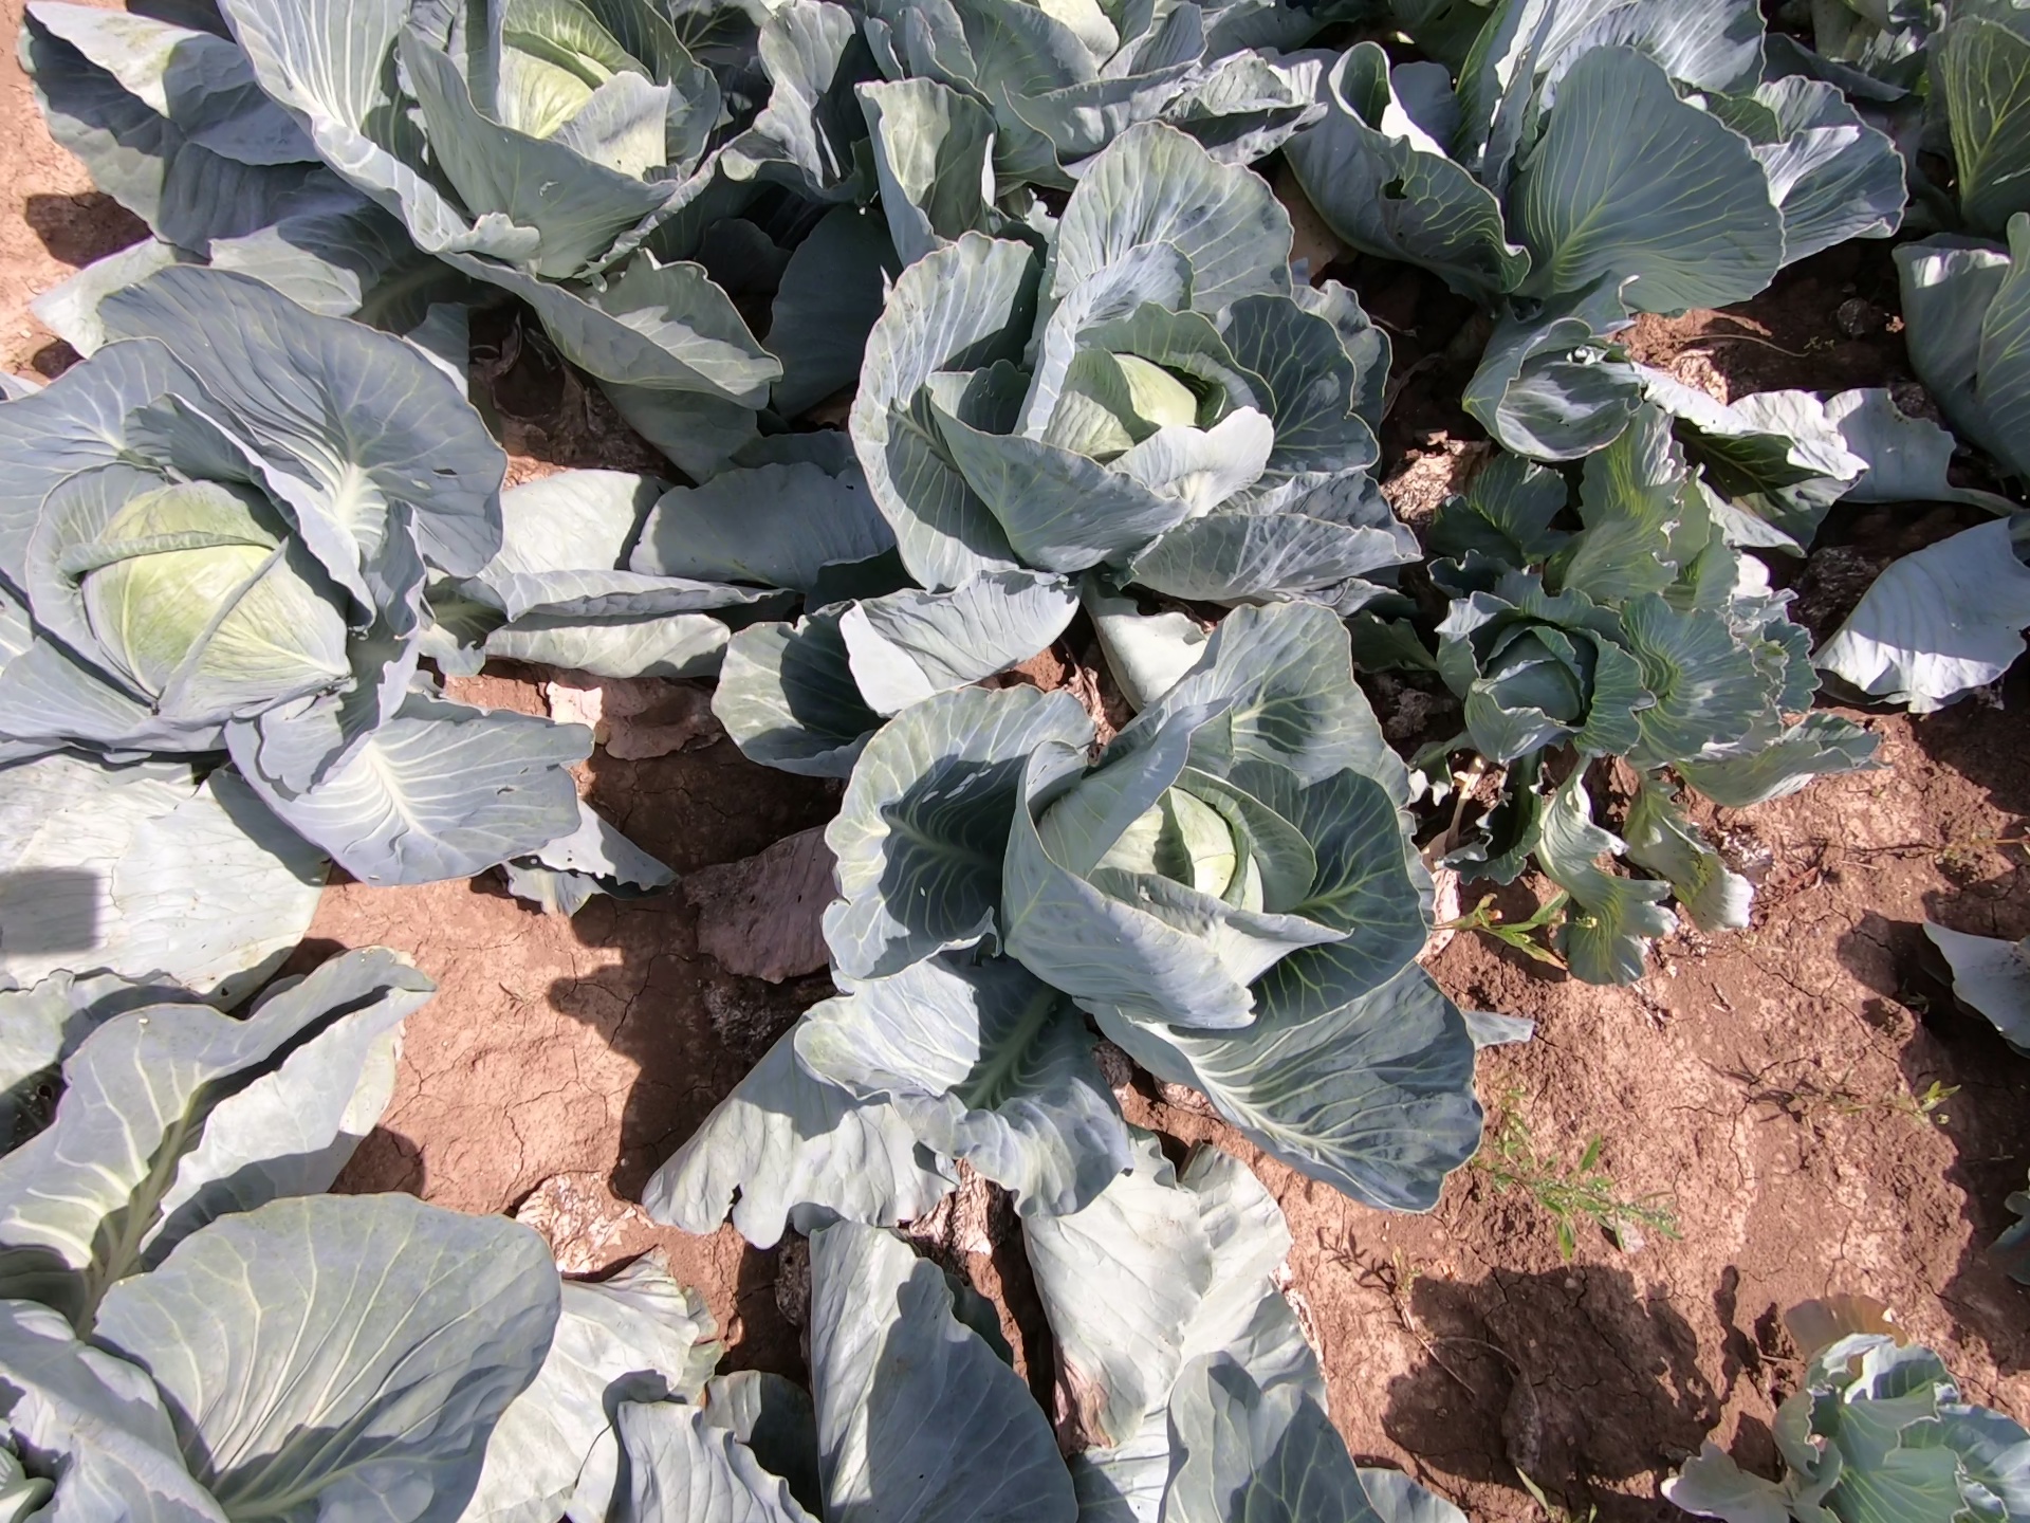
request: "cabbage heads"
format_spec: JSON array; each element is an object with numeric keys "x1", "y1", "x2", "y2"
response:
[
  {"x1": 924, "y1": 0, "x2": 1110, "y2": 136},
  {"x1": 1009, "y1": 781, "x2": 1265, "y2": 997},
  {"x1": 431, "y1": 8, "x2": 661, "y2": 268},
  {"x1": 1031, "y1": 349, "x2": 1213, "y2": 513},
  {"x1": 1481, "y1": 626, "x2": 1599, "y2": 739},
  {"x1": 80, "y1": 479, "x2": 349, "y2": 717}
]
